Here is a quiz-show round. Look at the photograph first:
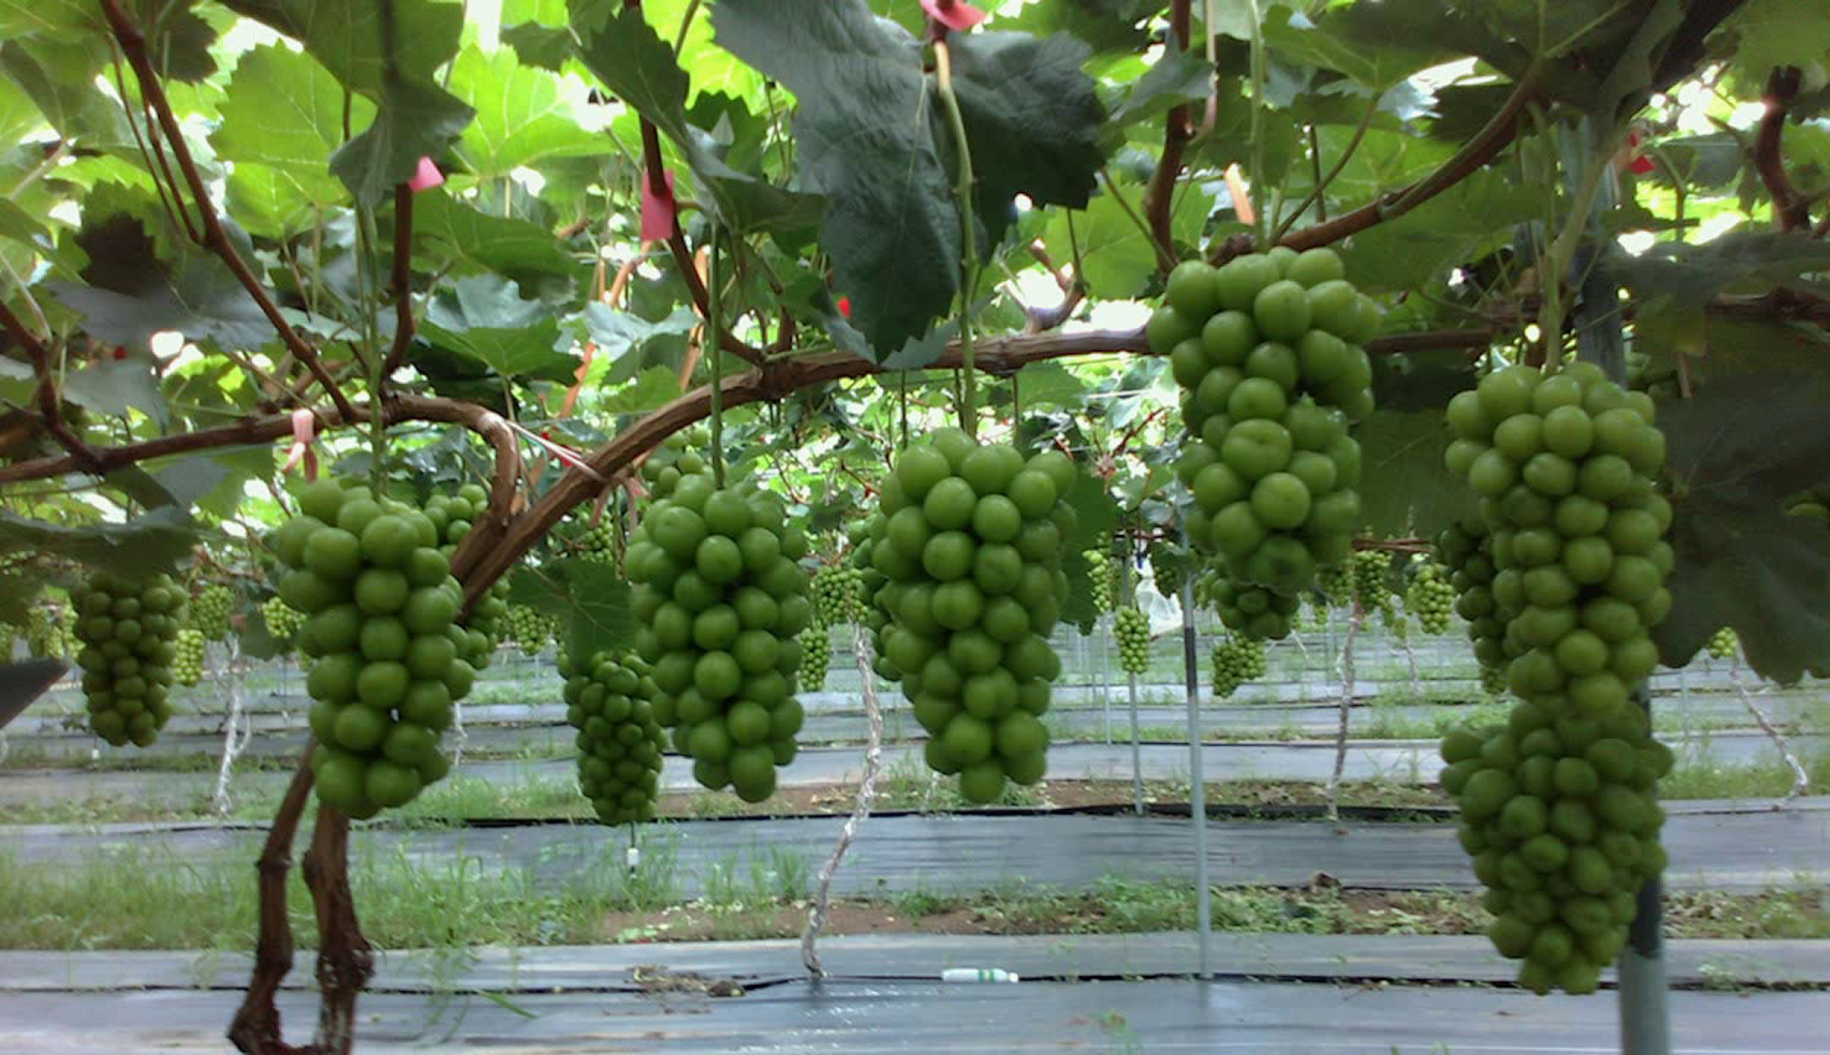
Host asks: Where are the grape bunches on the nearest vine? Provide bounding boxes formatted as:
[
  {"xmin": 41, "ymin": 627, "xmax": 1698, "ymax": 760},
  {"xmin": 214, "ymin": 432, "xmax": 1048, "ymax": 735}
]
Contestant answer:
[
  {"xmin": 870, "ymin": 426, "xmax": 1078, "ymax": 803},
  {"xmin": 1444, "ymin": 360, "xmax": 1675, "ymax": 719},
  {"xmin": 277, "ymin": 481, "xmax": 475, "ymax": 822},
  {"xmin": 1438, "ymin": 700, "xmax": 1673, "ymax": 998},
  {"xmin": 623, "ymin": 475, "xmax": 811, "ymax": 803},
  {"xmin": 1145, "ymin": 246, "xmax": 1383, "ymax": 596}
]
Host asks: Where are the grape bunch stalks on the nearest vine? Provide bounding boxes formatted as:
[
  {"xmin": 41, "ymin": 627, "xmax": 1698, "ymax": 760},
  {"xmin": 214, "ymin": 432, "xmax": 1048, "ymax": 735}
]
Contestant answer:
[
  {"xmin": 353, "ymin": 204, "xmax": 384, "ymax": 501},
  {"xmin": 1525, "ymin": 100, "xmax": 1562, "ymax": 377},
  {"xmin": 1243, "ymin": 0, "xmax": 1270, "ymax": 252},
  {"xmin": 934, "ymin": 40, "xmax": 984, "ymax": 437},
  {"xmin": 677, "ymin": 198, "xmax": 726, "ymax": 489}
]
